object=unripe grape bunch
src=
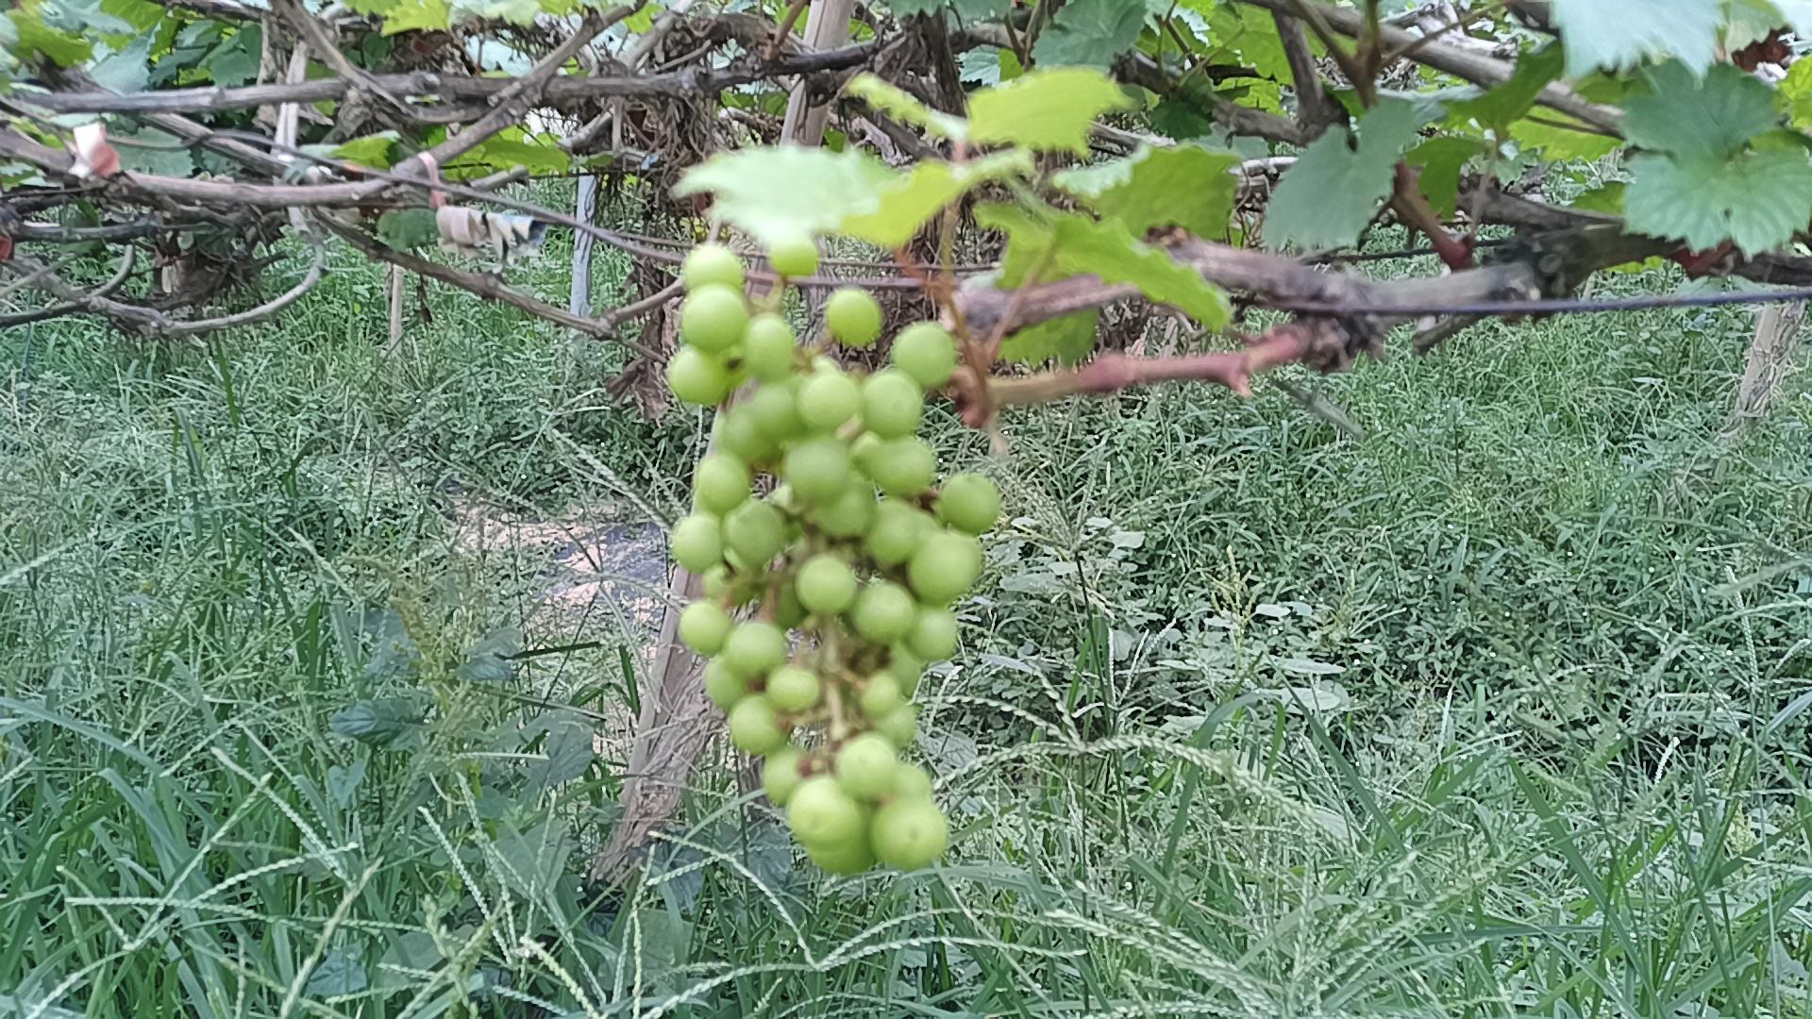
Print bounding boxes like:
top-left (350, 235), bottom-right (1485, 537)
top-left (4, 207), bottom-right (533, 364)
top-left (668, 239), bottom-right (999, 873)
